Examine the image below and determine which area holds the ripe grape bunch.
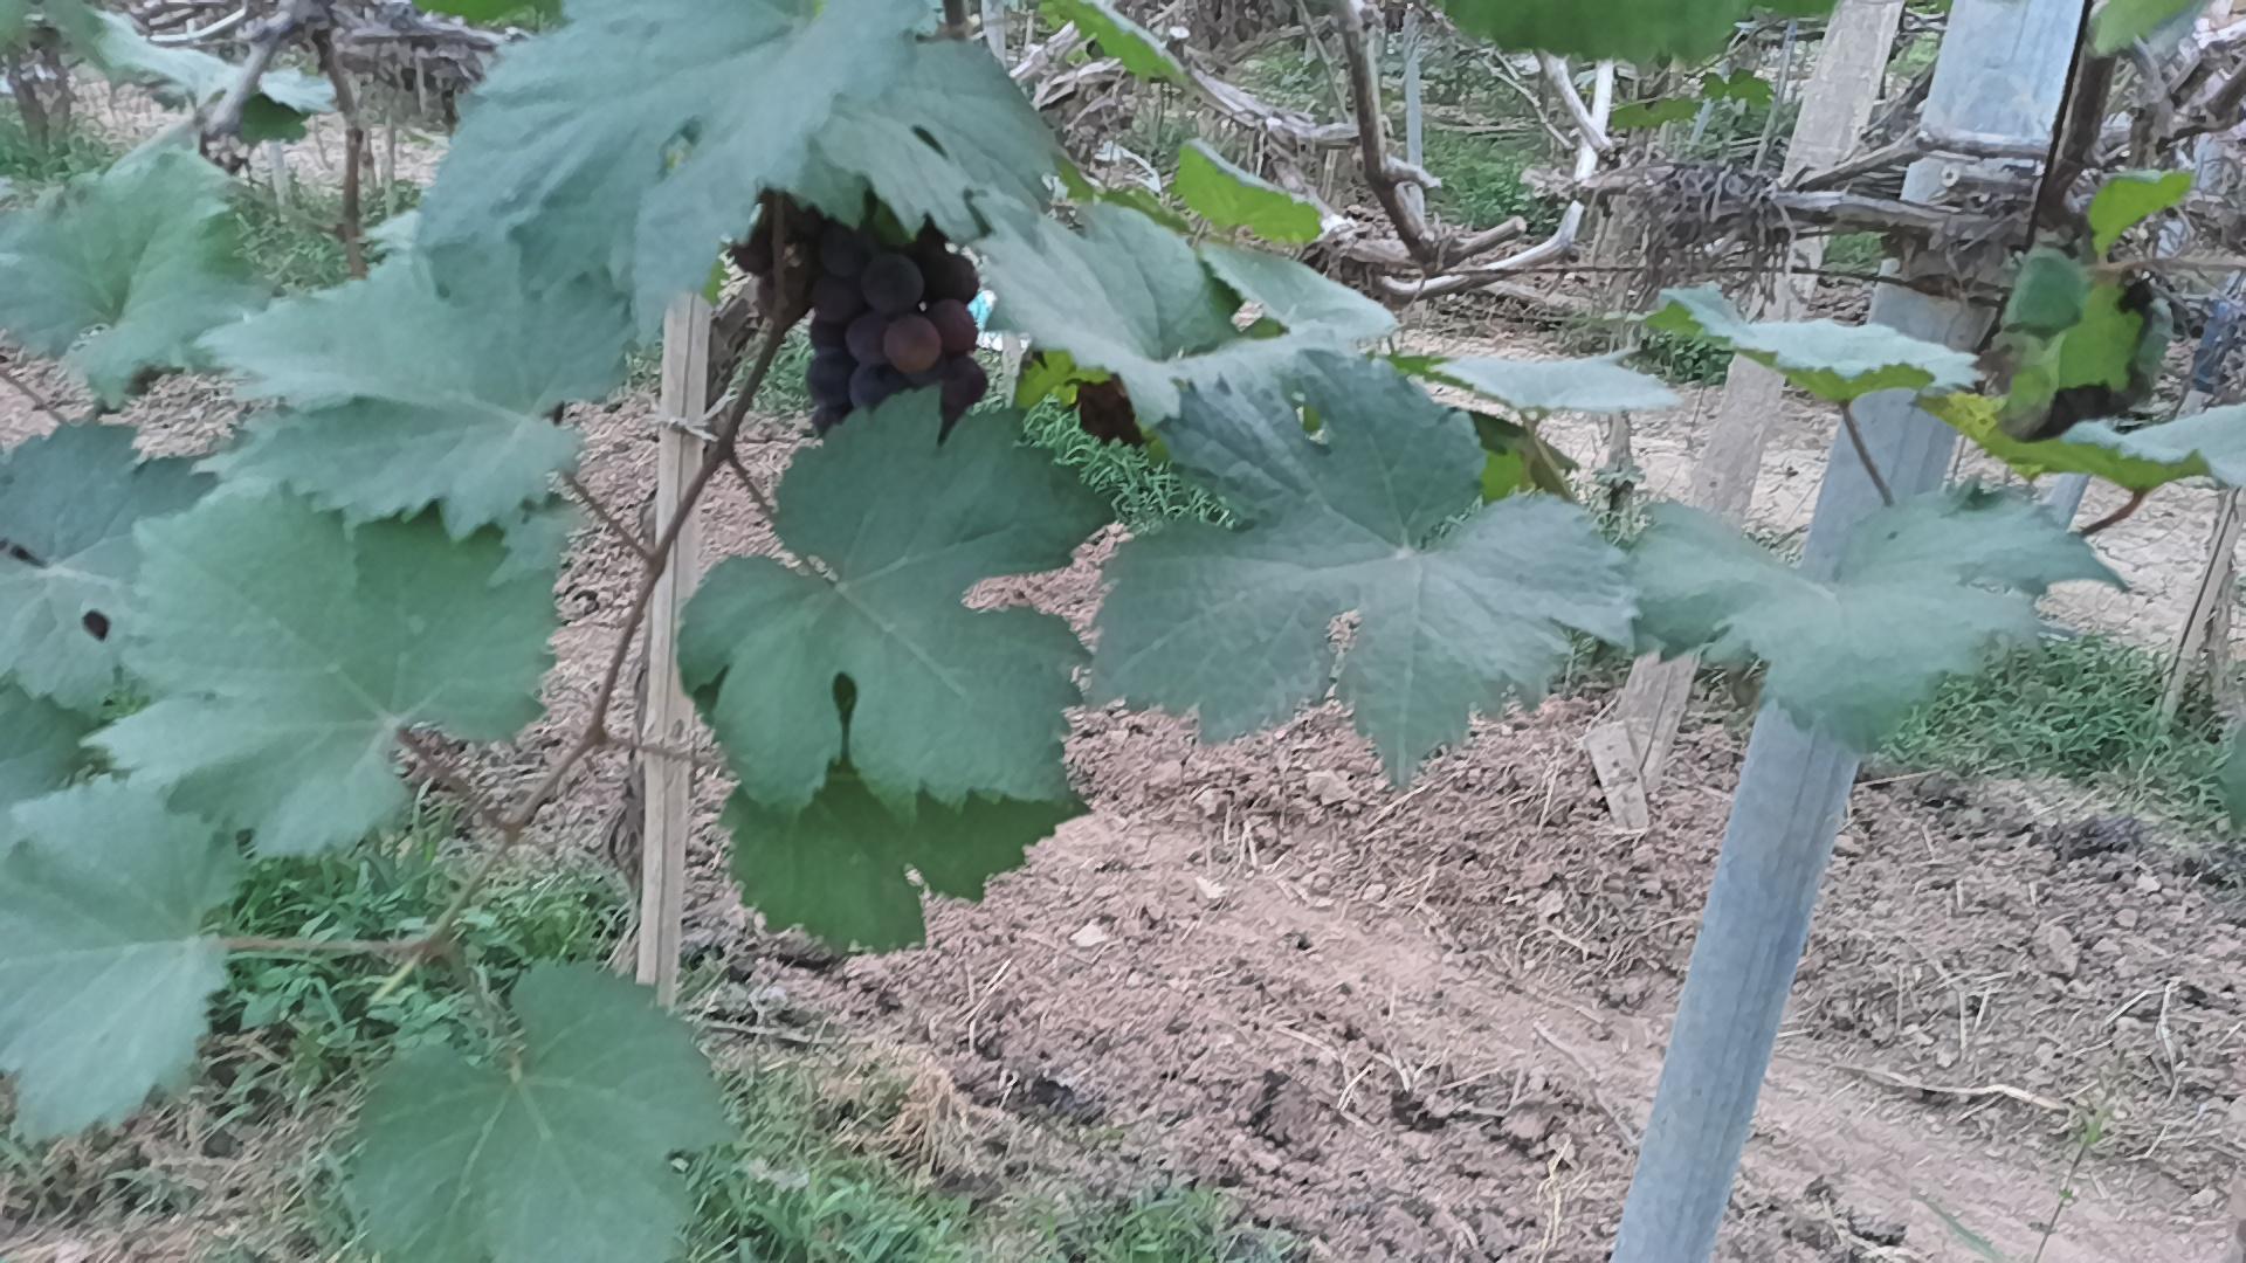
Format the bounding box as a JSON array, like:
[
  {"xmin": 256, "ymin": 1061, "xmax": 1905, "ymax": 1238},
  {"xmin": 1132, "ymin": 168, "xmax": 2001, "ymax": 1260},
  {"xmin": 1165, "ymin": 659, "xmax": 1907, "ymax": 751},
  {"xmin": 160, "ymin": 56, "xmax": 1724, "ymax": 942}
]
[{"xmin": 730, "ymin": 192, "xmax": 987, "ymax": 441}]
